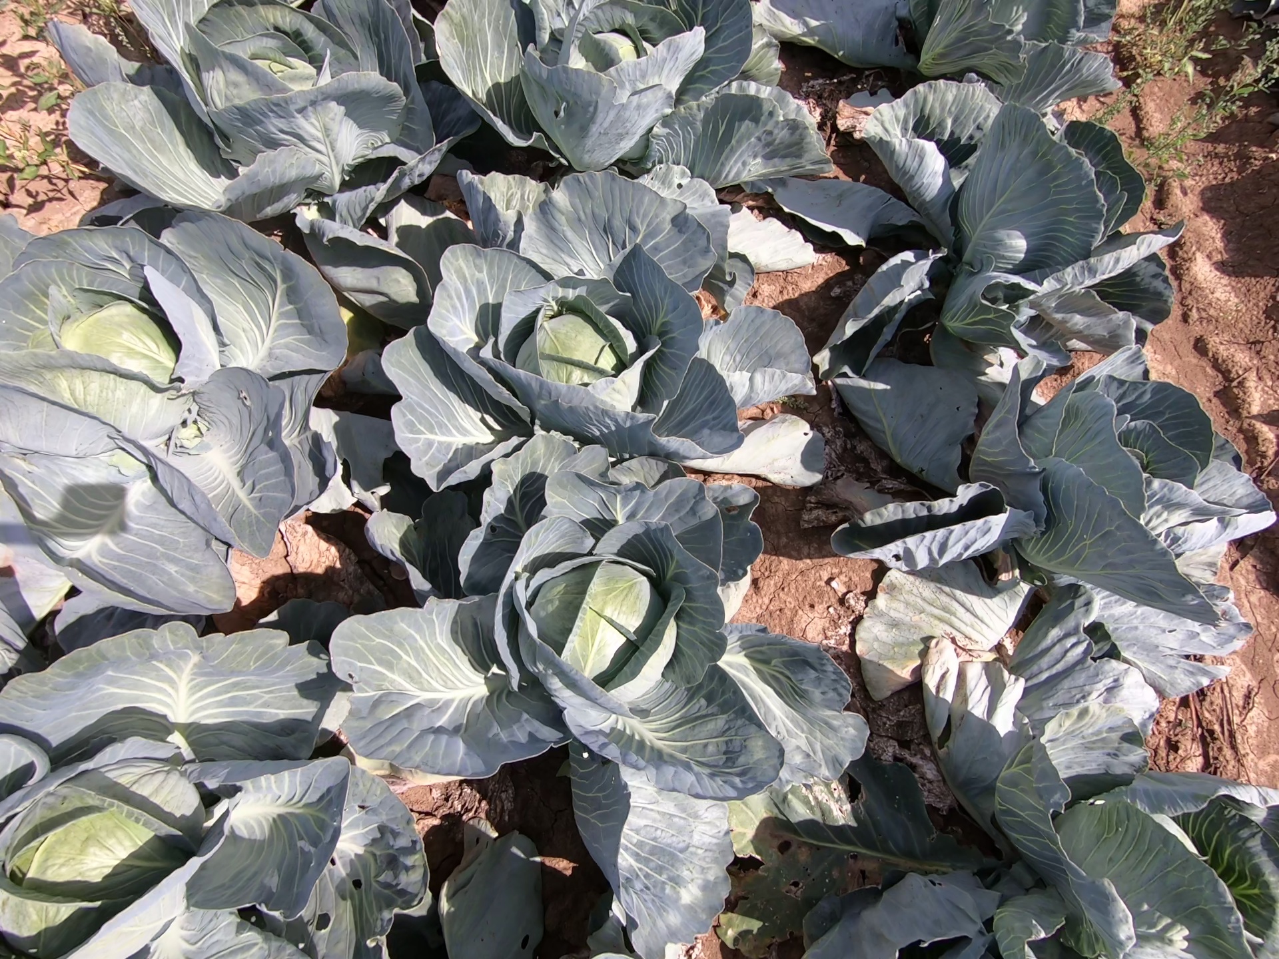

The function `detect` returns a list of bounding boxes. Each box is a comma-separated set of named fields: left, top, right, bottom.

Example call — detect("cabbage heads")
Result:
left=202, top=47, right=327, bottom=133
left=525, top=559, right=679, bottom=703
left=564, top=29, right=673, bottom=137
left=15, top=298, right=194, bottom=438
left=0, top=757, right=212, bottom=958
left=1045, top=798, right=1222, bottom=956
left=517, top=312, right=642, bottom=414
